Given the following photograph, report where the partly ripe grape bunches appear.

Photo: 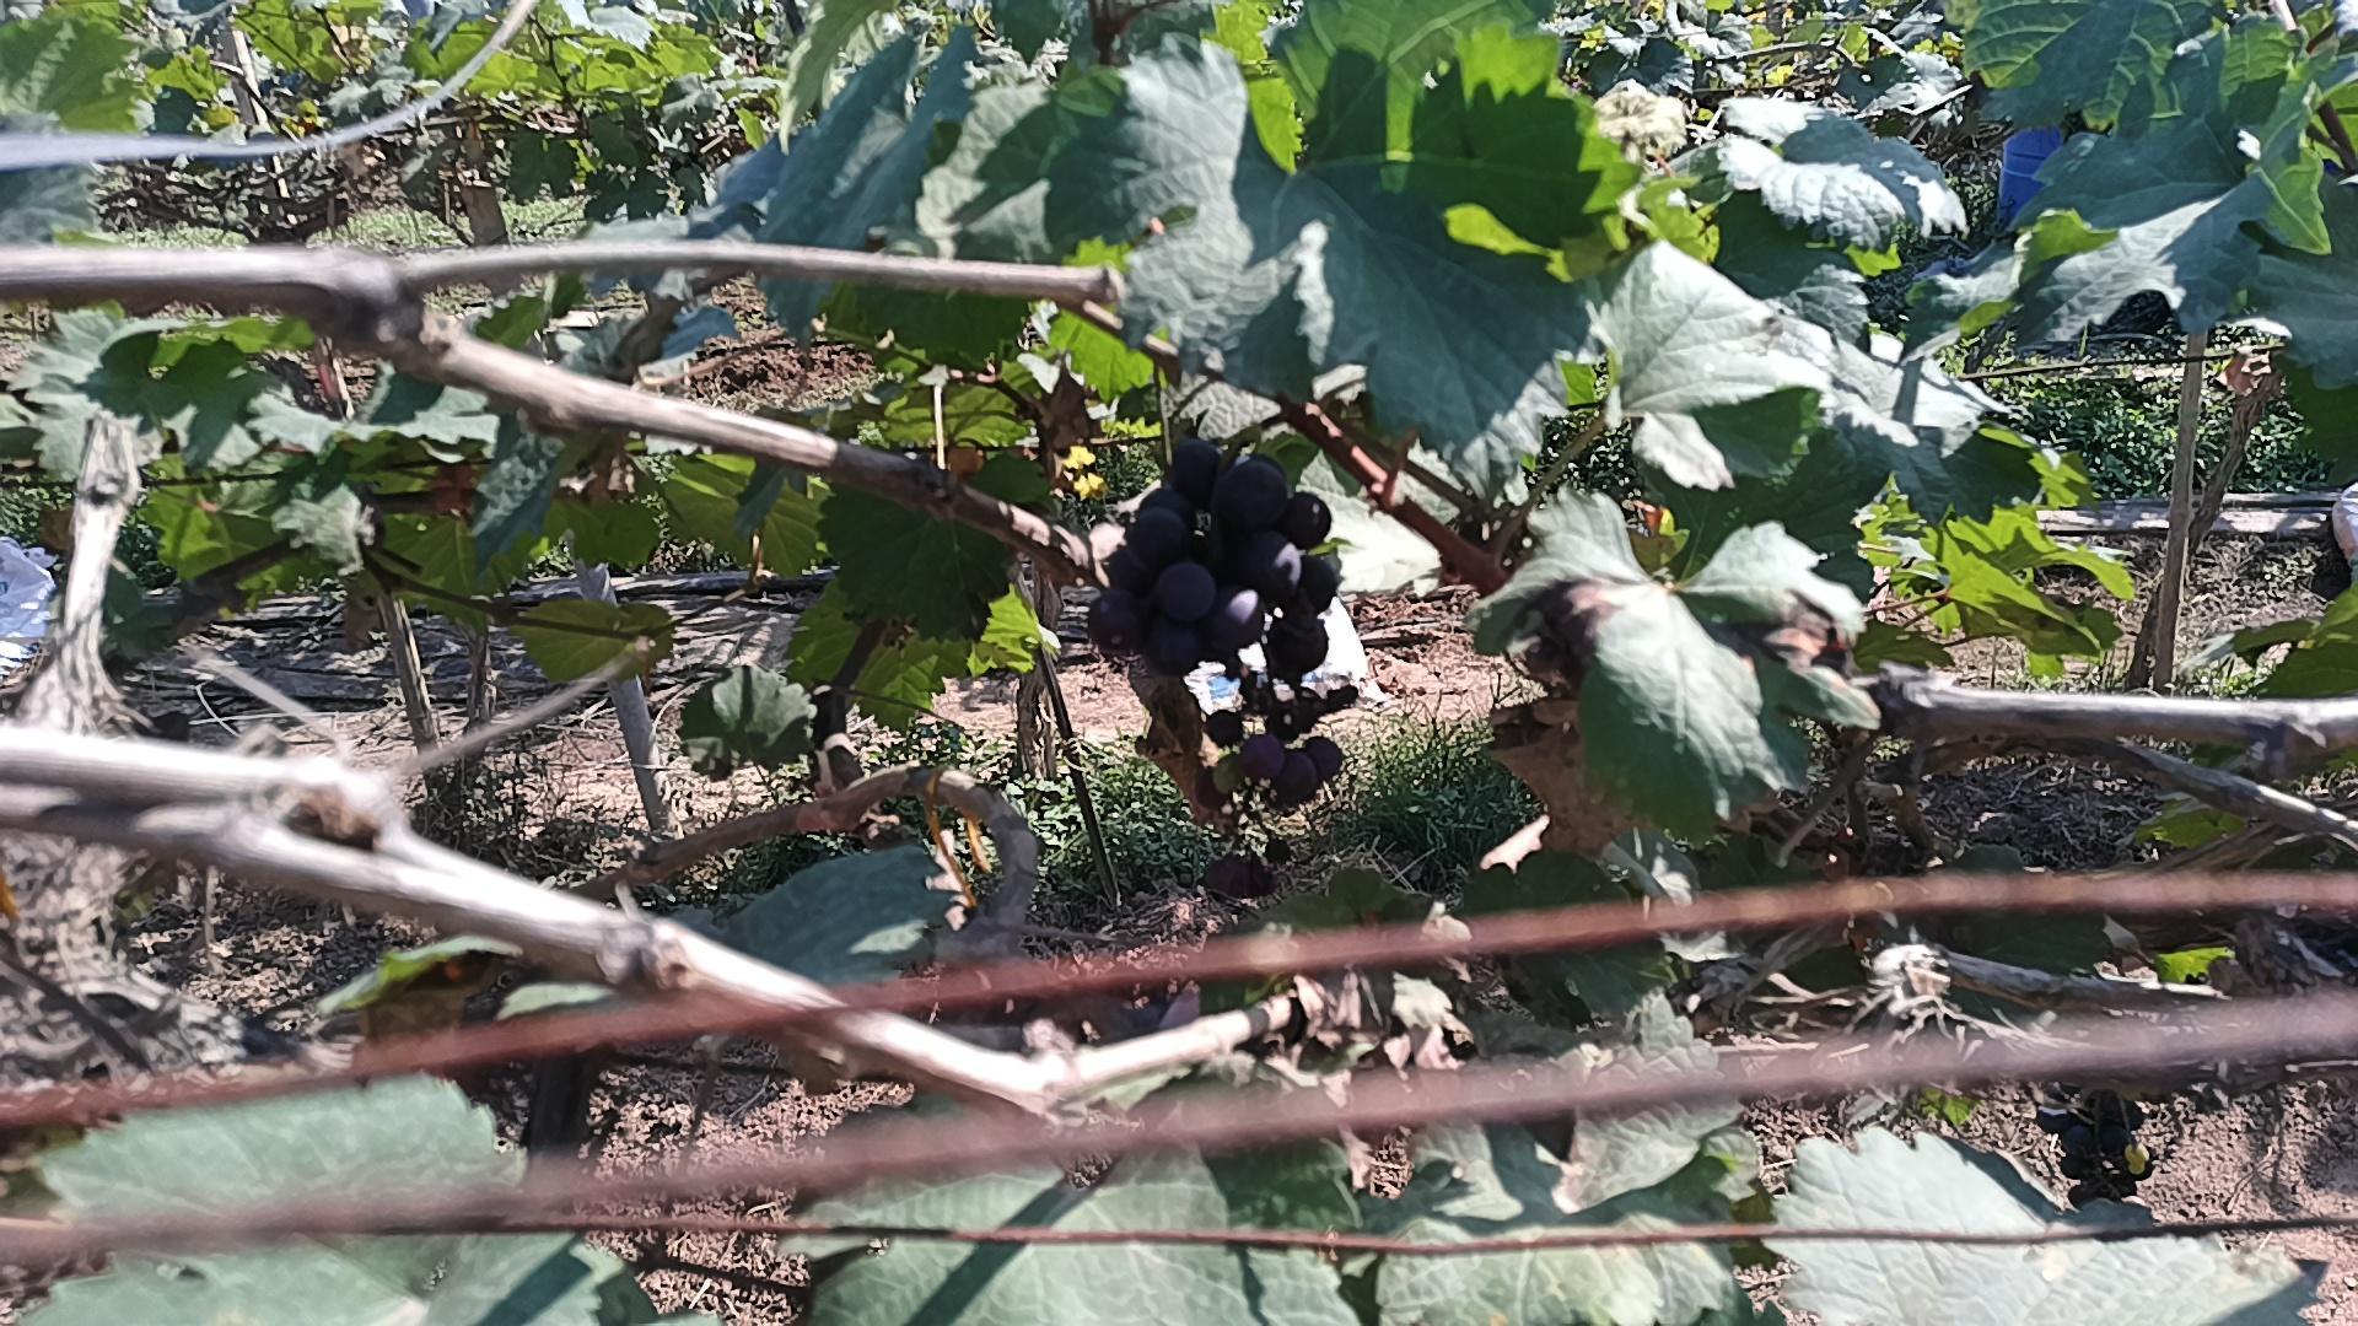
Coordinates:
[2036,1084,2155,1208]
[1088,437,1364,823]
